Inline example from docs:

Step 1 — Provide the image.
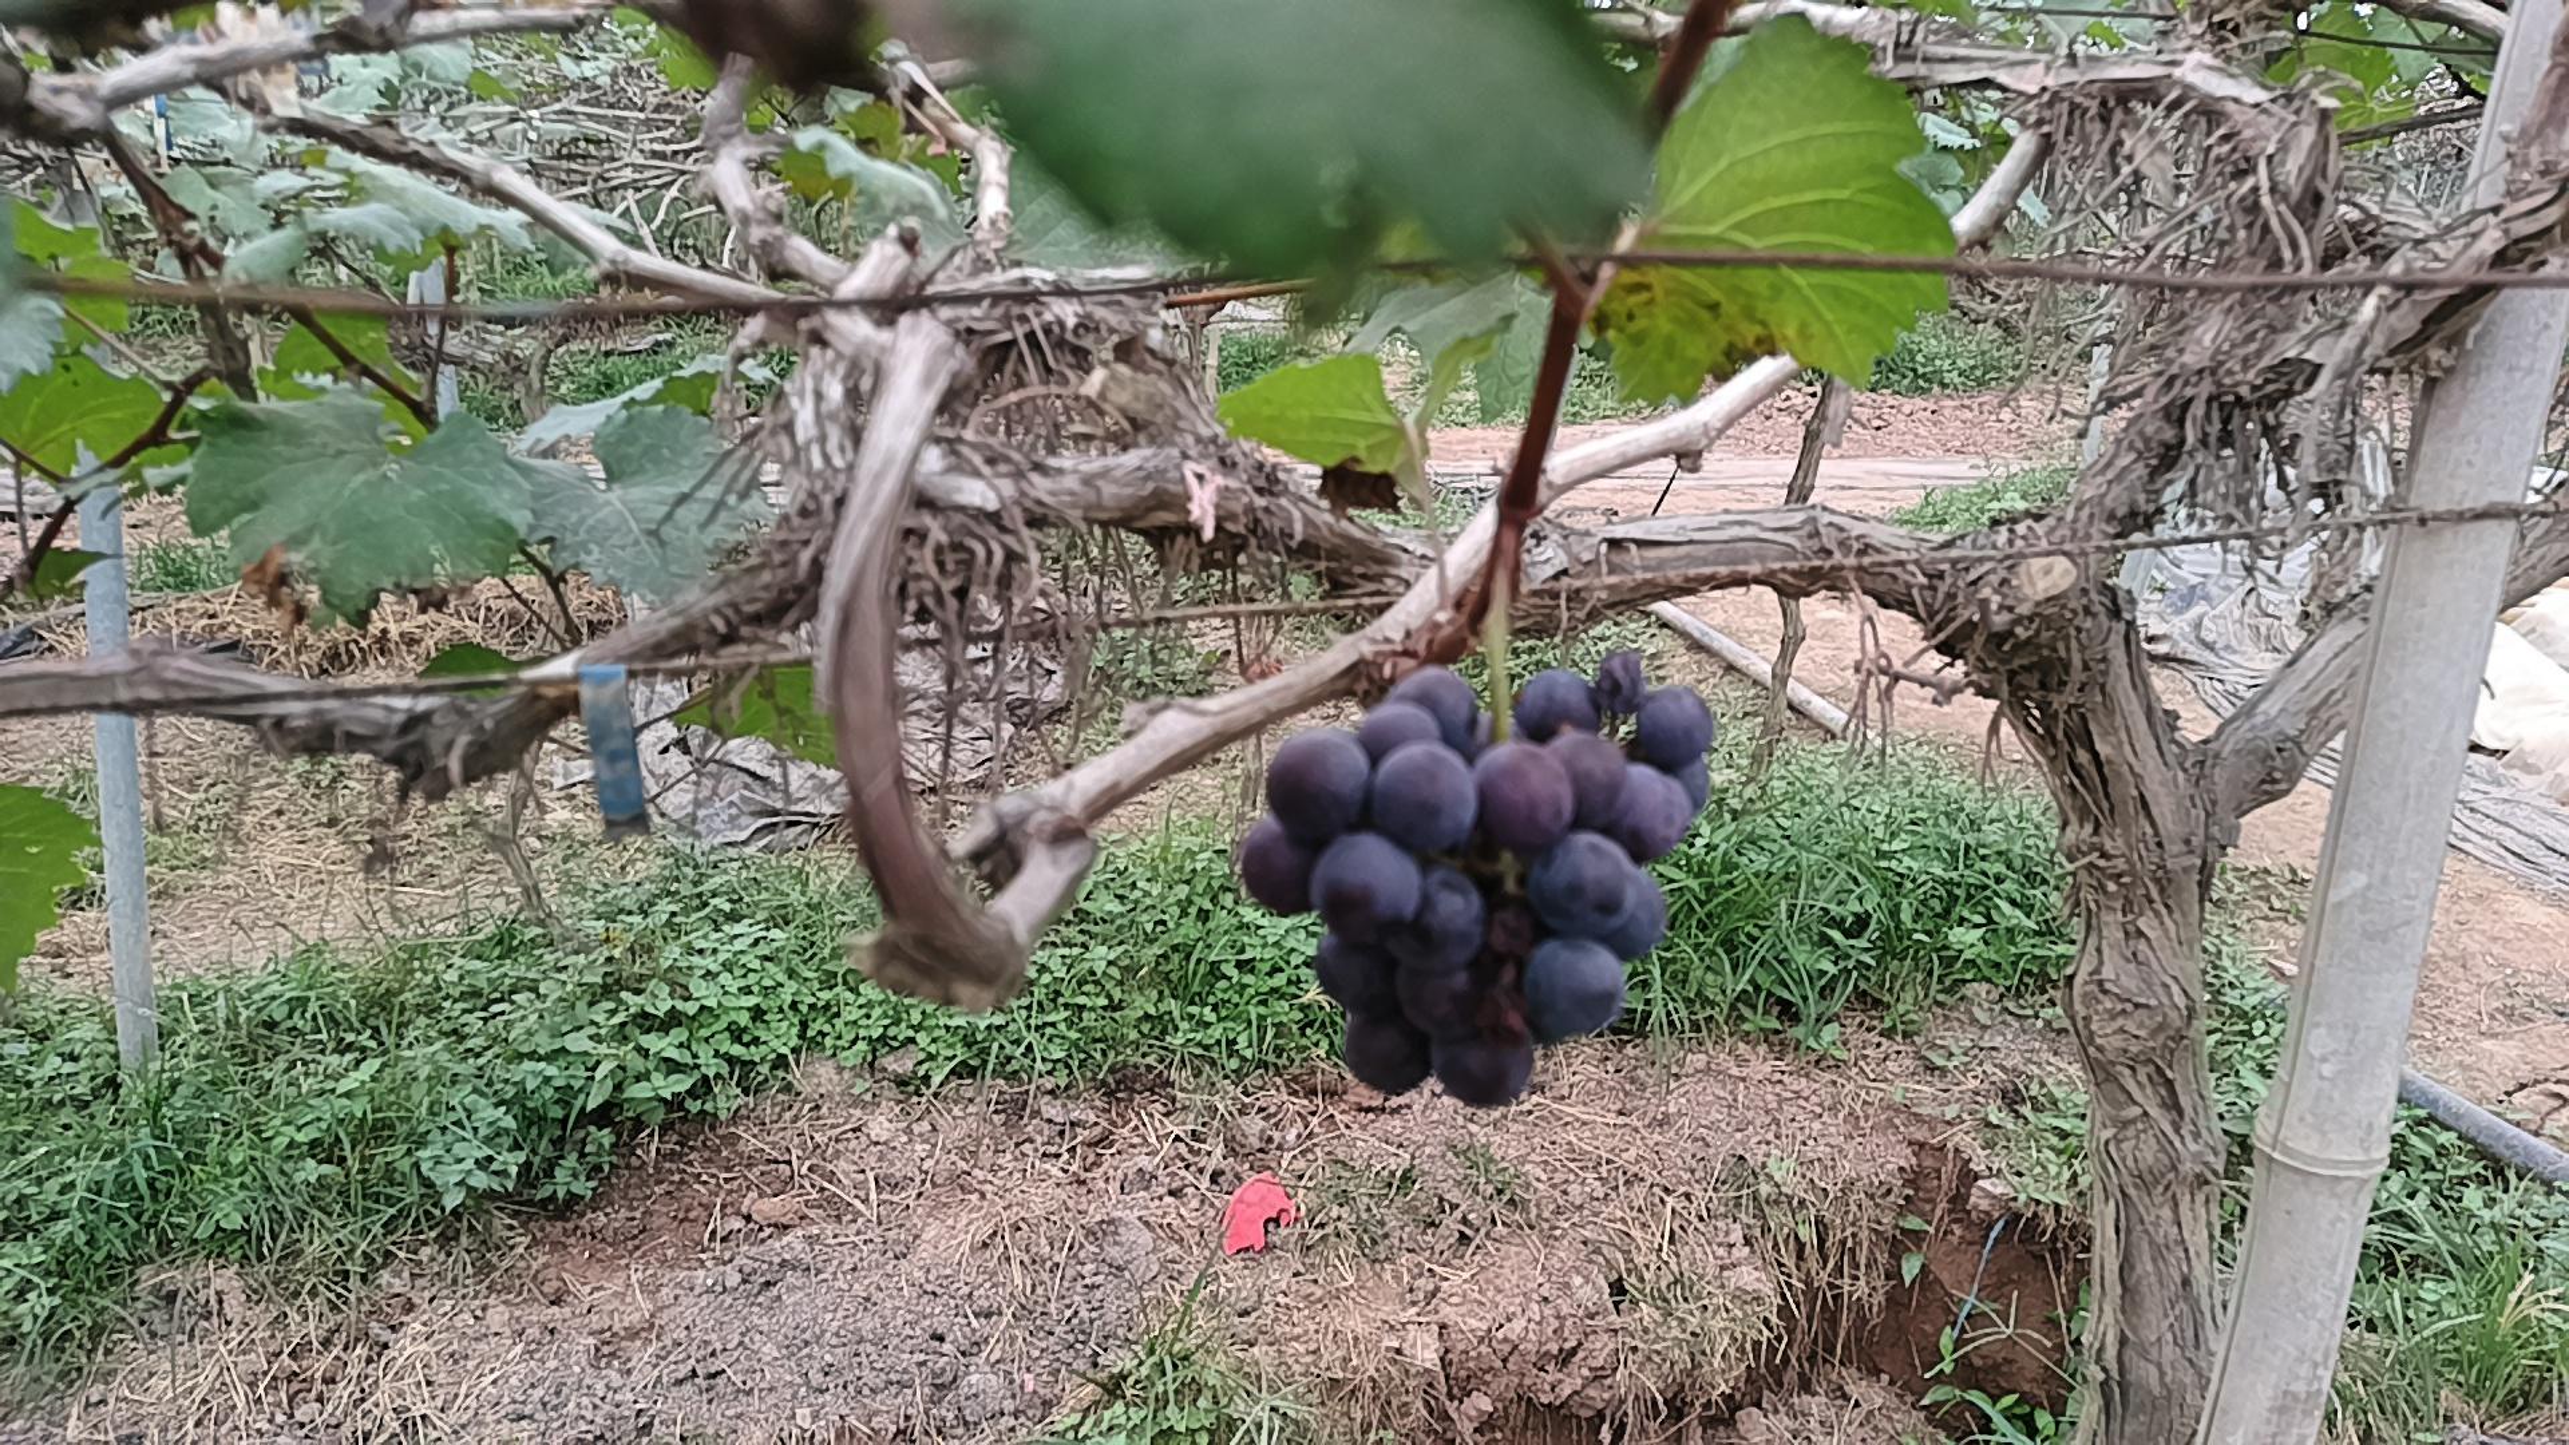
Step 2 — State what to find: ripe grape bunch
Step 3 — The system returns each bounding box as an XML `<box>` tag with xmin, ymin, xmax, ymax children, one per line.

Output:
<box><xmin>1238</xmin><ymin>650</ymin><xmax>1713</xmax><ymax>1105</ymax></box>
